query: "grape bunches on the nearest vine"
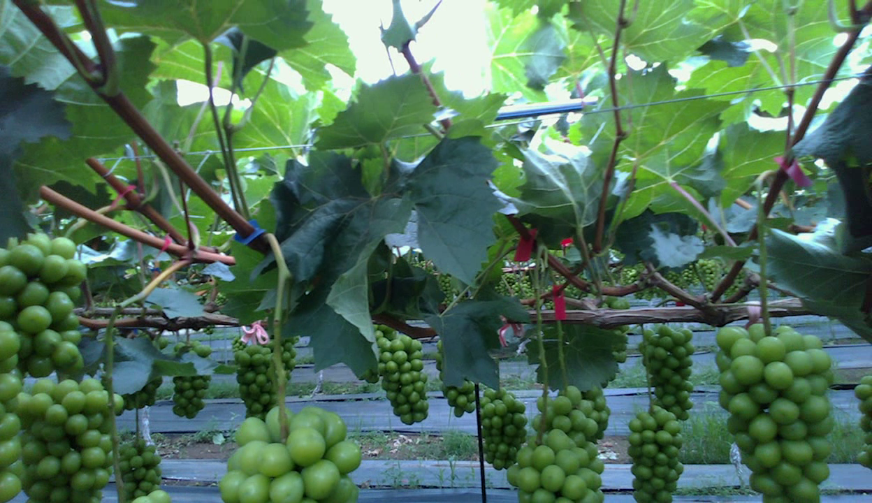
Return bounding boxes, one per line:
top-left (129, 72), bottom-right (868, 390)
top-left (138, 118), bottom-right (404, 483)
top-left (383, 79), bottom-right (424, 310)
top-left (0, 233), bottom-right (86, 378)
top-left (15, 377), bottom-right (124, 502)
top-left (532, 386), bottom-right (605, 474)
top-left (507, 429), bottom-right (604, 502)
top-left (219, 406), bottom-right (362, 502)
top-left (715, 323), bottom-right (835, 502)
top-left (0, 320), bottom-right (23, 502)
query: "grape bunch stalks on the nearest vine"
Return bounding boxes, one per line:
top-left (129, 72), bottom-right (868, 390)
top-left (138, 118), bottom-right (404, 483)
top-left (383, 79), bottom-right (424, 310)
top-left (757, 168), bottom-right (774, 337)
top-left (265, 233), bottom-right (288, 444)
top-left (557, 321), bottom-right (568, 393)
top-left (535, 239), bottom-right (548, 398)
